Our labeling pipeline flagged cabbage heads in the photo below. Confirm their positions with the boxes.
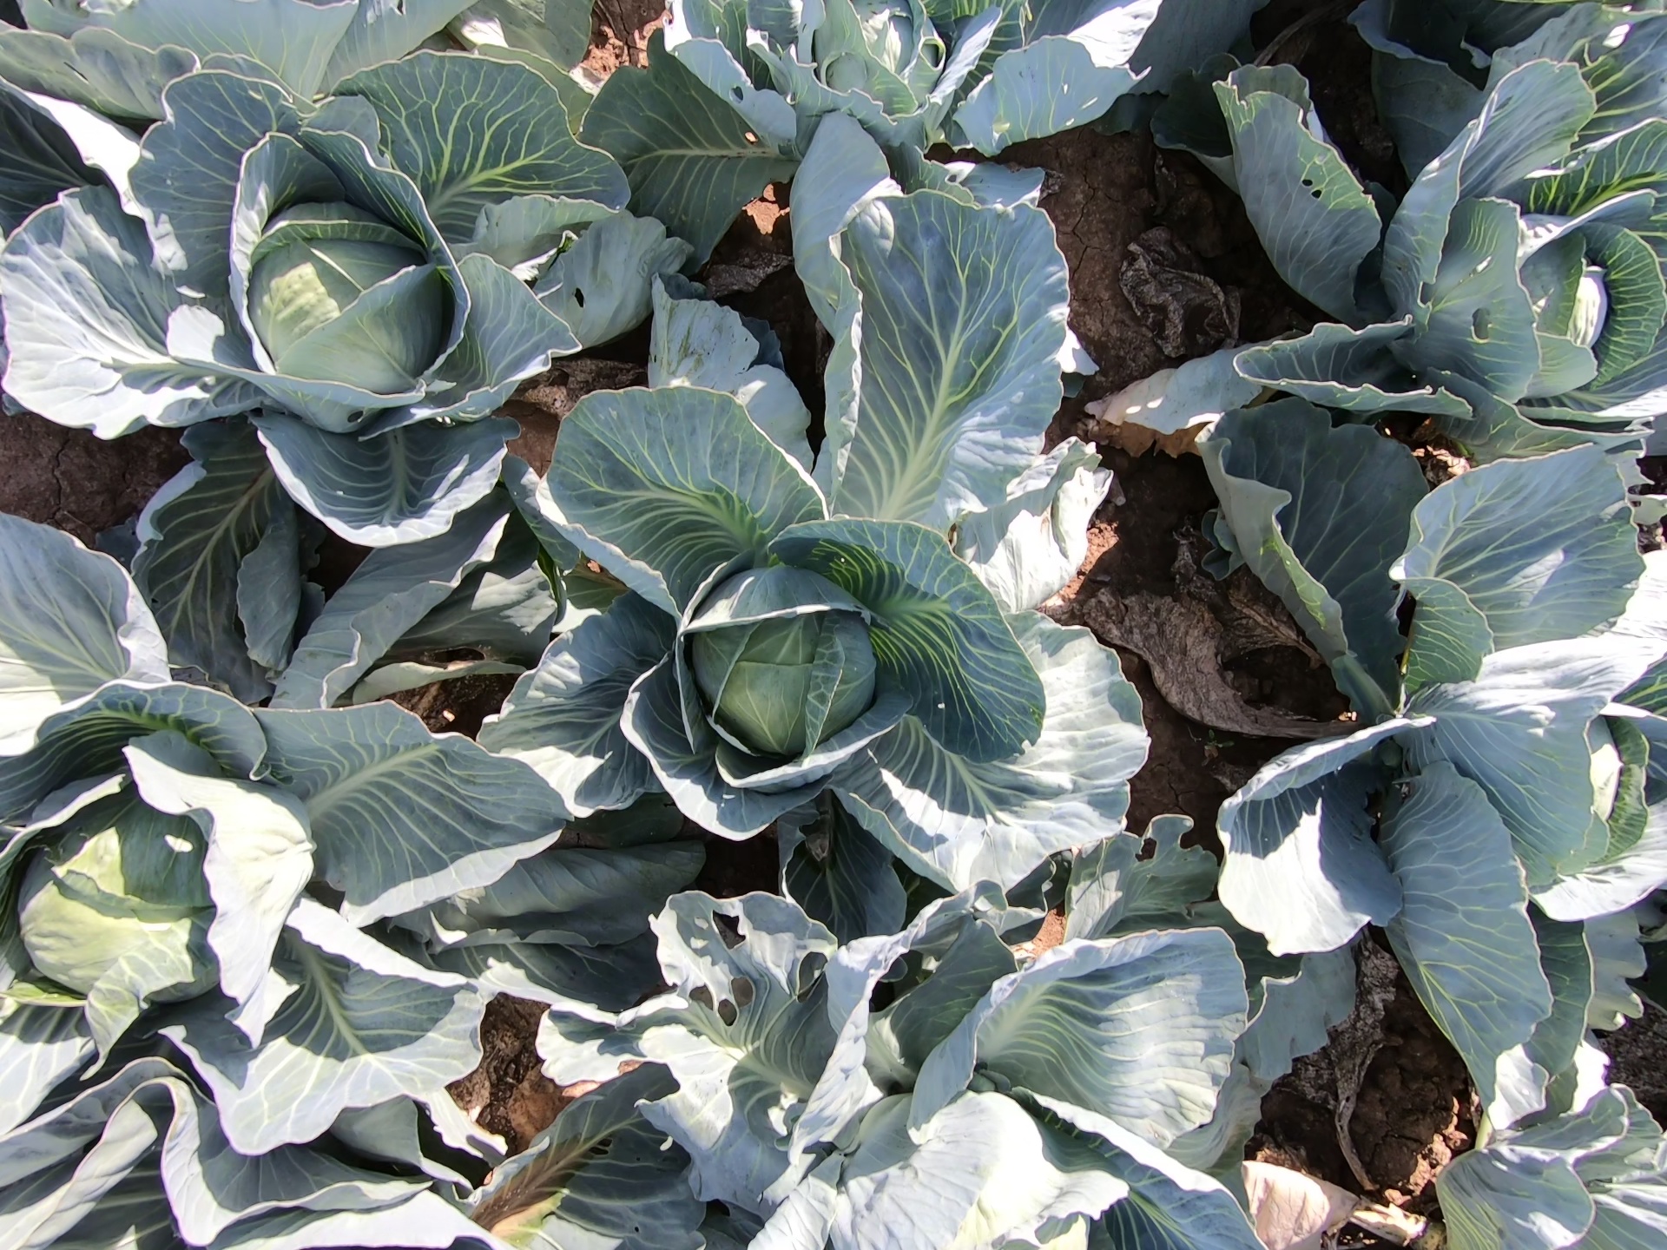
[850,1104,1093,1245]
[246,196,442,394]
[815,4,946,116]
[692,572,880,749]
[21,779,255,993]
[1458,244,1612,376]
[1435,681,1626,843]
